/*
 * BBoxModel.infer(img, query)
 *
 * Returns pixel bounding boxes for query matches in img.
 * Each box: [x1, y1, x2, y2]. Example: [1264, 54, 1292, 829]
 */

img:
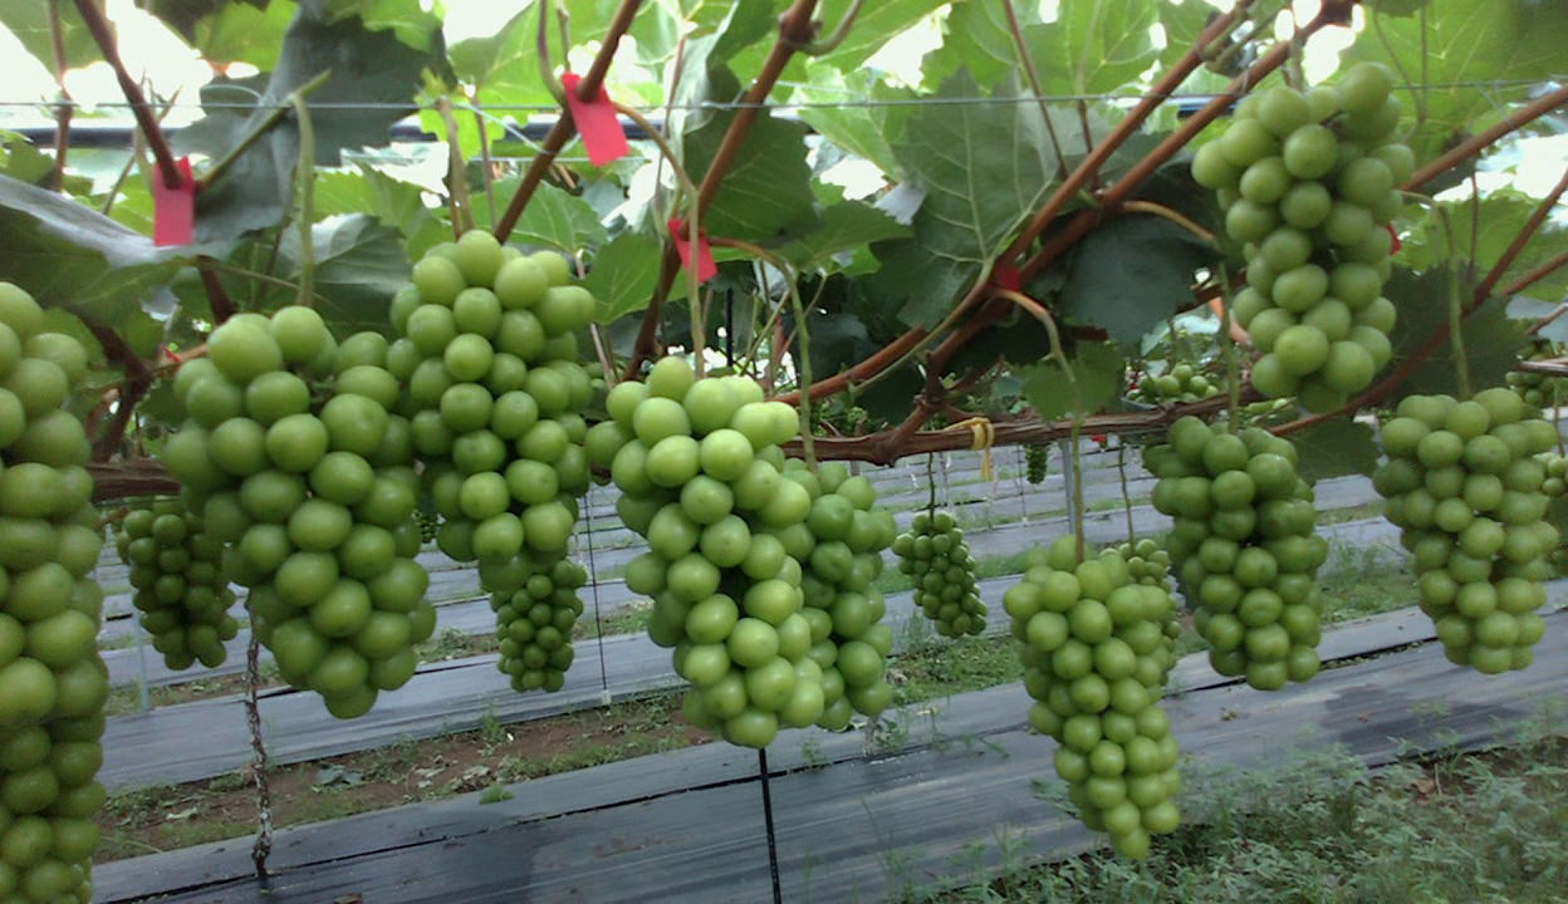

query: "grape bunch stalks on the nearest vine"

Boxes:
[284, 70, 330, 309]
[707, 236, 818, 470]
[1119, 200, 1240, 434]
[611, 100, 705, 382]
[985, 284, 1084, 564]
[1401, 190, 1473, 401]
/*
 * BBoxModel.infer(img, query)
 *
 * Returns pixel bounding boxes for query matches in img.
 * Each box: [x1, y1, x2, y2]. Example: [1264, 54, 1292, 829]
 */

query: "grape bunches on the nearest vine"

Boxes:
[587, 357, 822, 747]
[1376, 387, 1558, 673]
[162, 306, 435, 721]
[1148, 417, 1327, 688]
[780, 456, 897, 728]
[382, 230, 594, 589]
[0, 709, 108, 903]
[0, 281, 103, 728]
[1004, 535, 1179, 858]
[1190, 62, 1415, 414]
